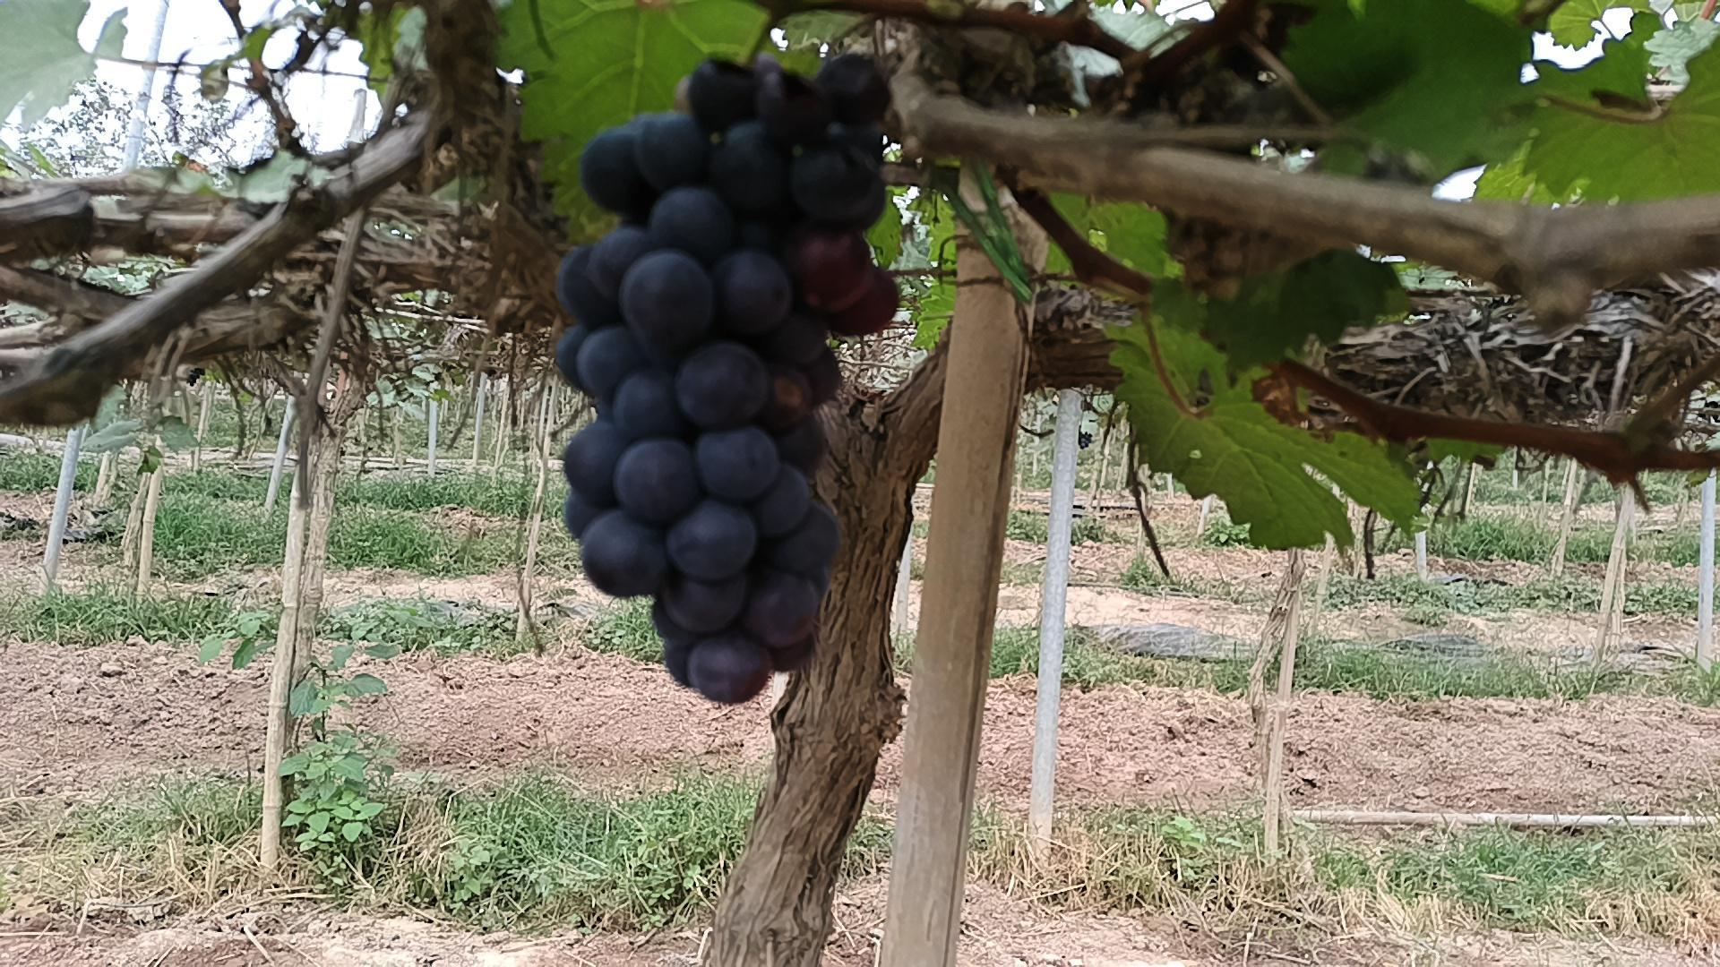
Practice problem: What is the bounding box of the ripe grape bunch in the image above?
[556,55,898,703]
